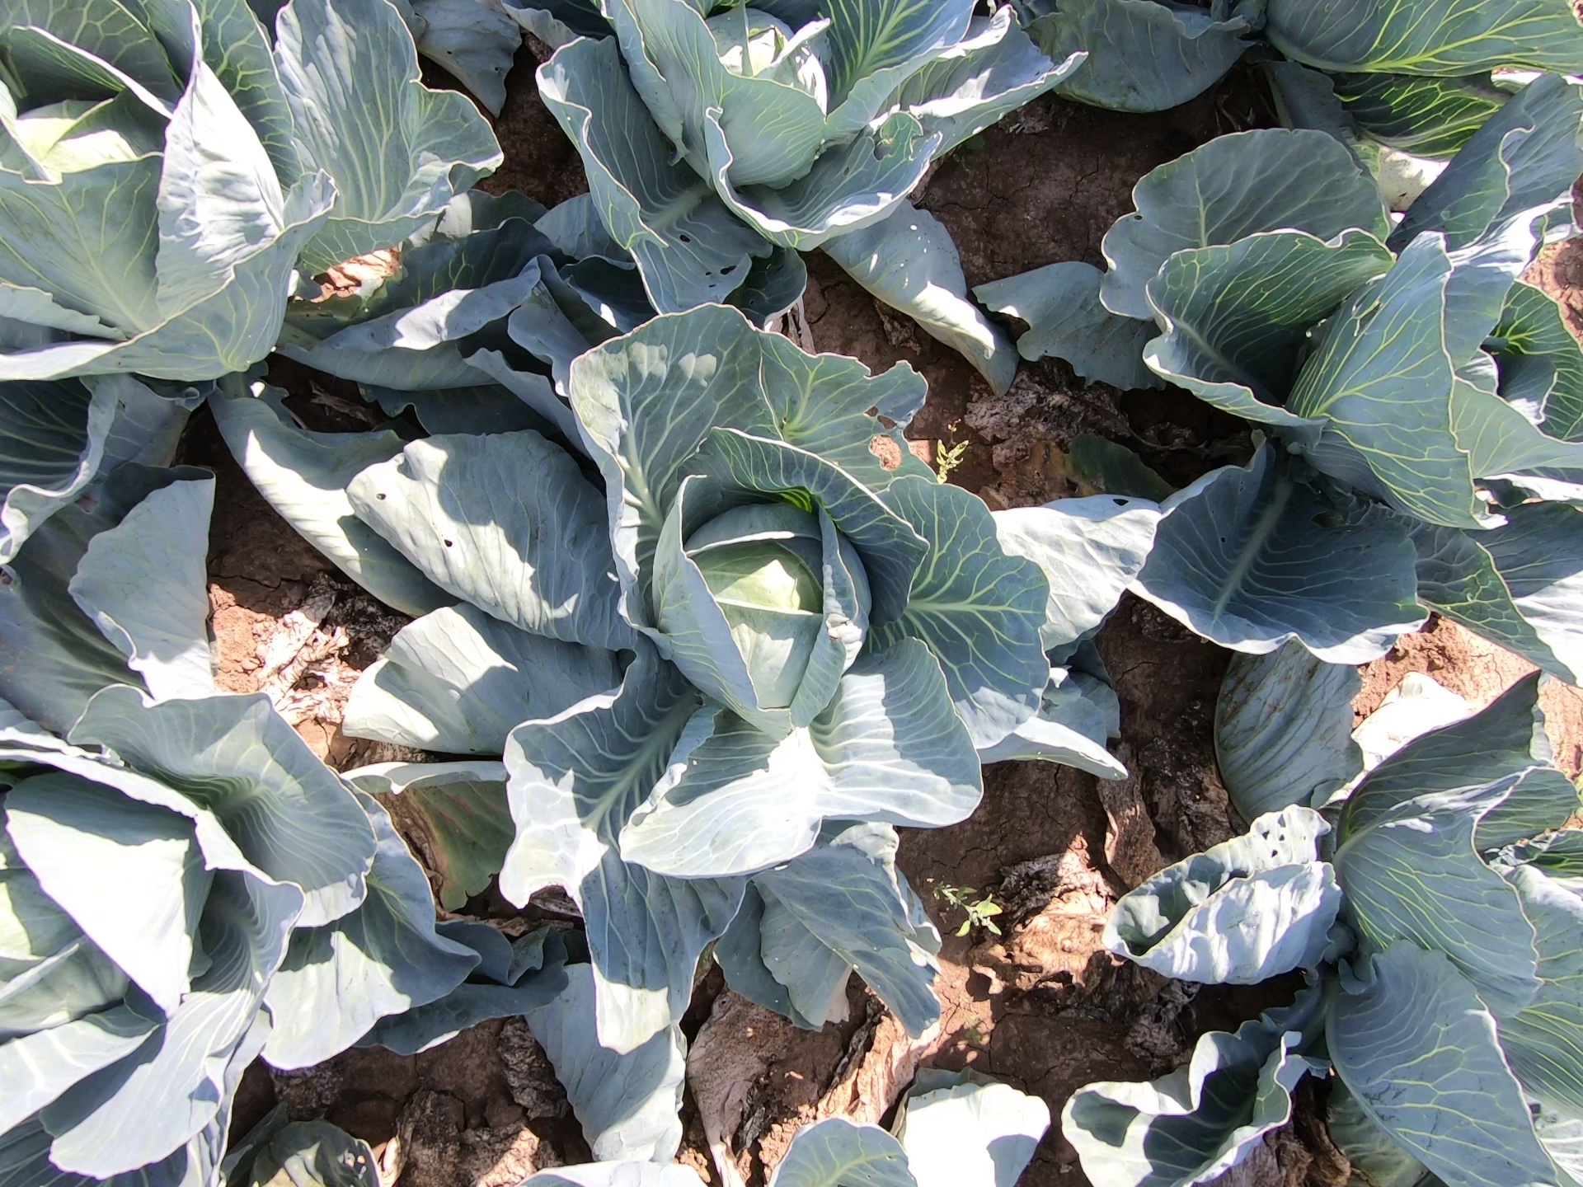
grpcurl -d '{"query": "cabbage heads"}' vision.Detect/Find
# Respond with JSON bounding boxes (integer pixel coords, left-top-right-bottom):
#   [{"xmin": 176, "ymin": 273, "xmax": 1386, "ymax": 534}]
[
  {"xmin": 0, "ymin": 809, "xmax": 171, "ymax": 1038},
  {"xmin": 674, "ymin": 513, "xmax": 863, "ymax": 705},
  {"xmin": 692, "ymin": 8, "xmax": 822, "ymax": 165},
  {"xmin": 4, "ymin": 96, "xmax": 181, "ymax": 312}
]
